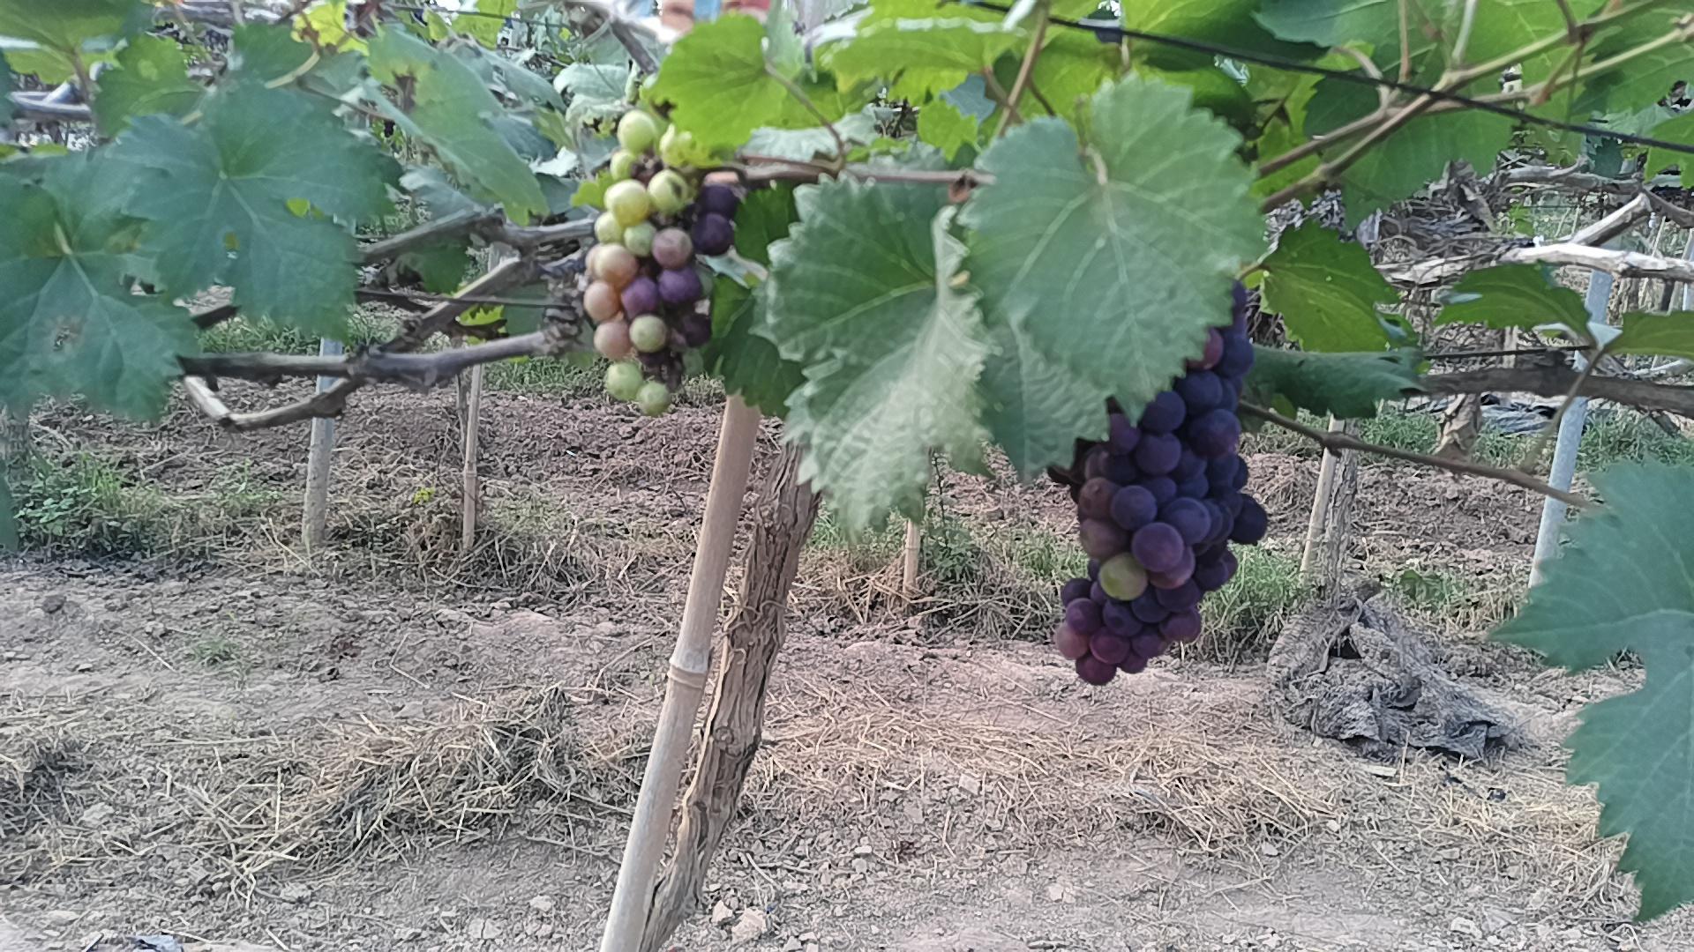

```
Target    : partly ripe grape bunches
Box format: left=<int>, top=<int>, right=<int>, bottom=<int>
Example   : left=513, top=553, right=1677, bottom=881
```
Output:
left=1049, top=284, right=1268, bottom=685
left=582, top=108, right=744, bottom=415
